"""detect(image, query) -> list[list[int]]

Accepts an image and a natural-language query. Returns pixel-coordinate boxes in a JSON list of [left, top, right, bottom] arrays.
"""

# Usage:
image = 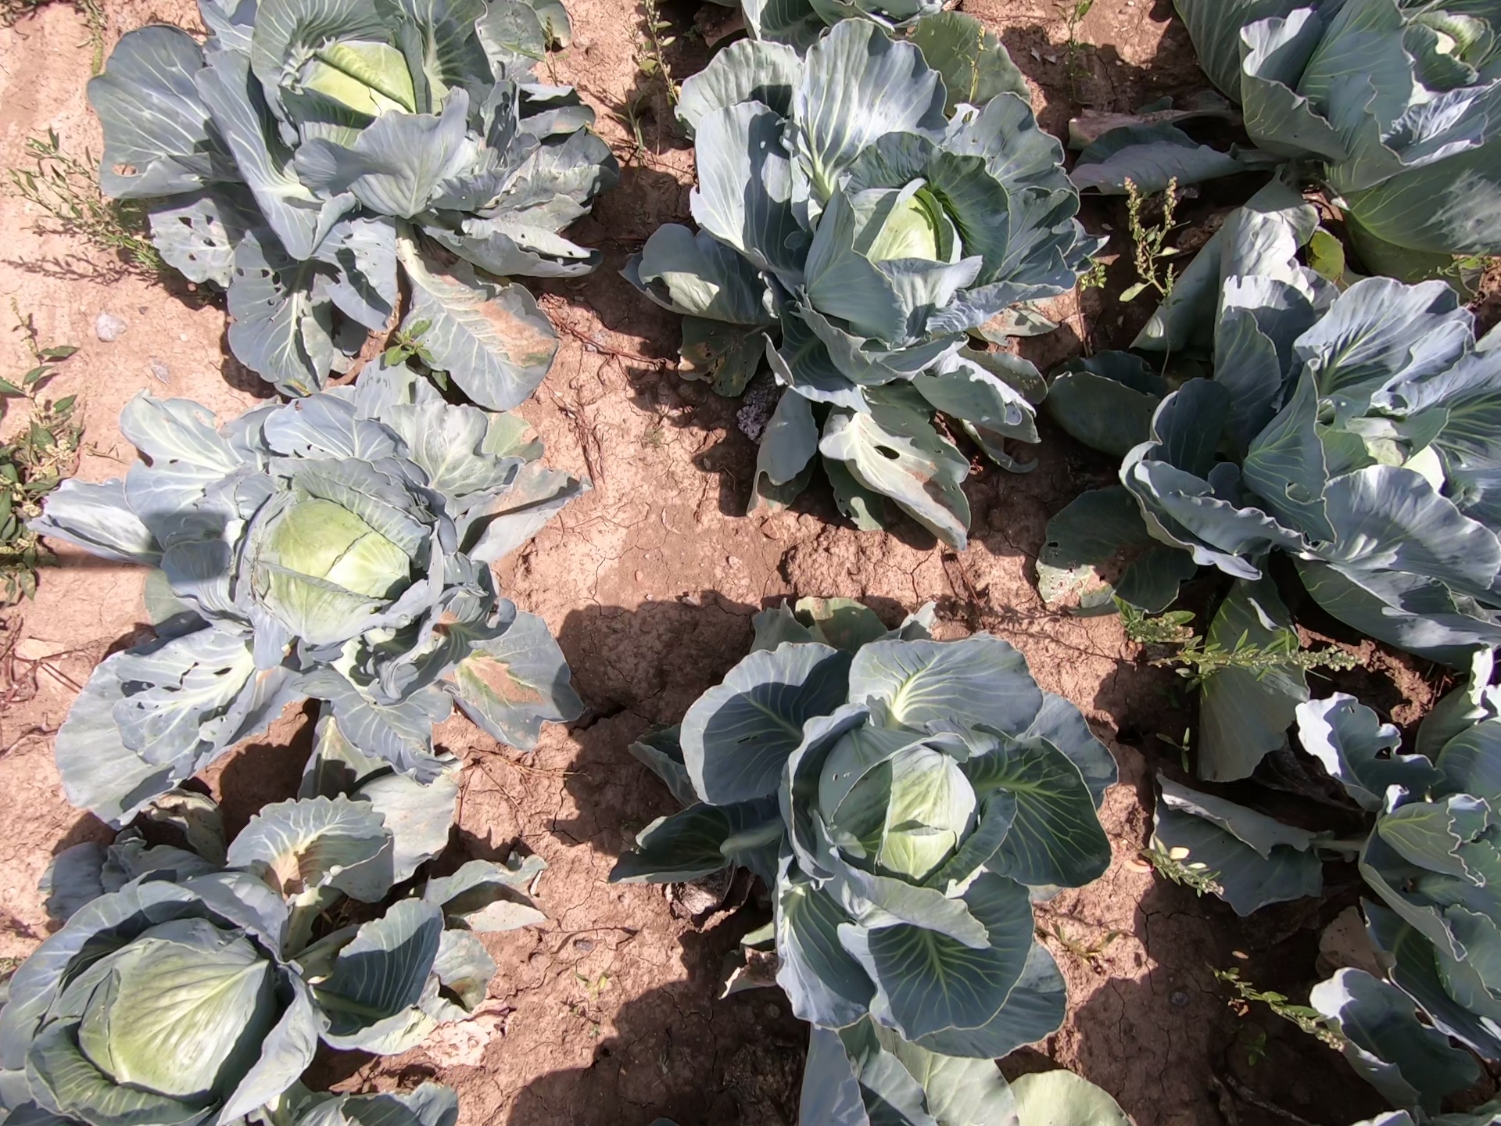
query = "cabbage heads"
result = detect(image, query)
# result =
[[1321, 13, 1471, 148], [80, 927, 277, 1111], [826, 186, 965, 319], [248, 492, 413, 639], [290, 40, 464, 203], [1317, 415, 1446, 522], [822, 735, 980, 902]]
